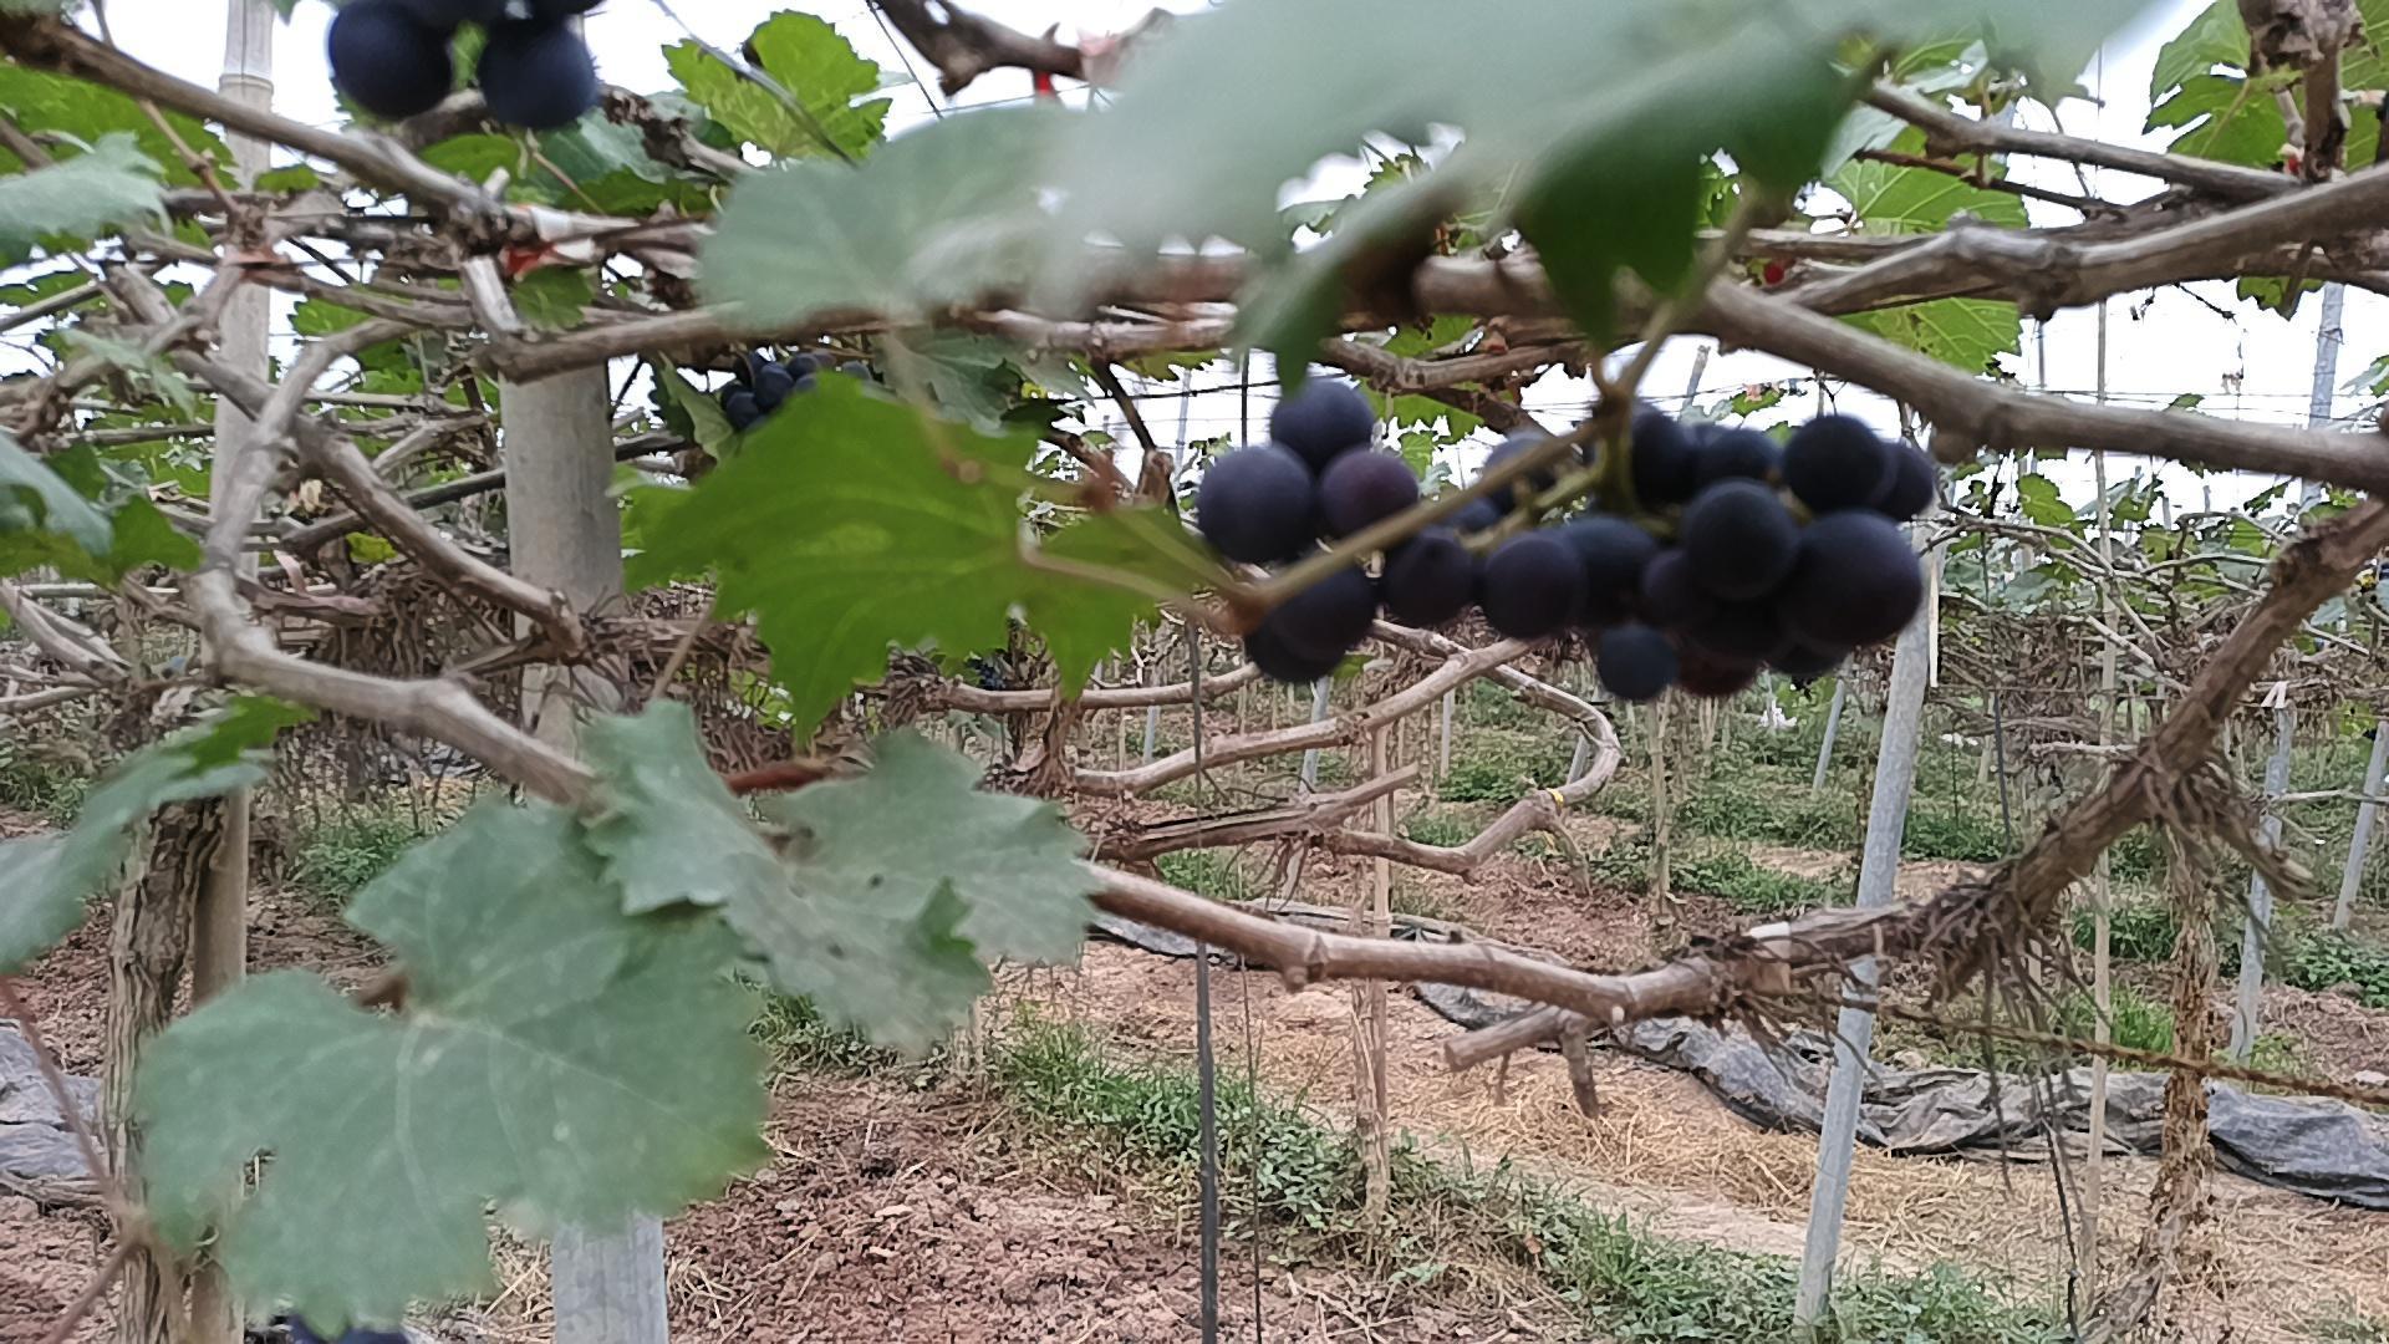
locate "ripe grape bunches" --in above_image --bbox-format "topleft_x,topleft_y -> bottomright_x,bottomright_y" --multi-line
327,0 -> 601,132
714,347 -> 882,438
1192,377 -> 1939,701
